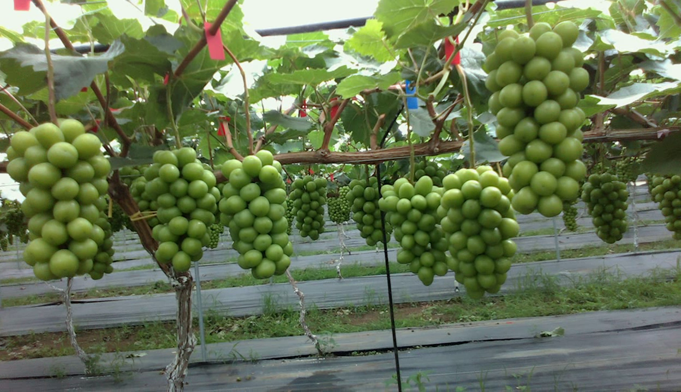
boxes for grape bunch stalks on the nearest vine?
[166,69,182,149]
[457,68,476,168]
[44,42,57,125]
[223,45,254,154]
[524,0,534,28]
[403,98,413,185]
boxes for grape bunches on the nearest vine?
[6,119,111,281]
[437,165,520,297]
[144,147,220,271]
[219,149,293,279]
[484,20,589,216]
[378,176,449,286]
